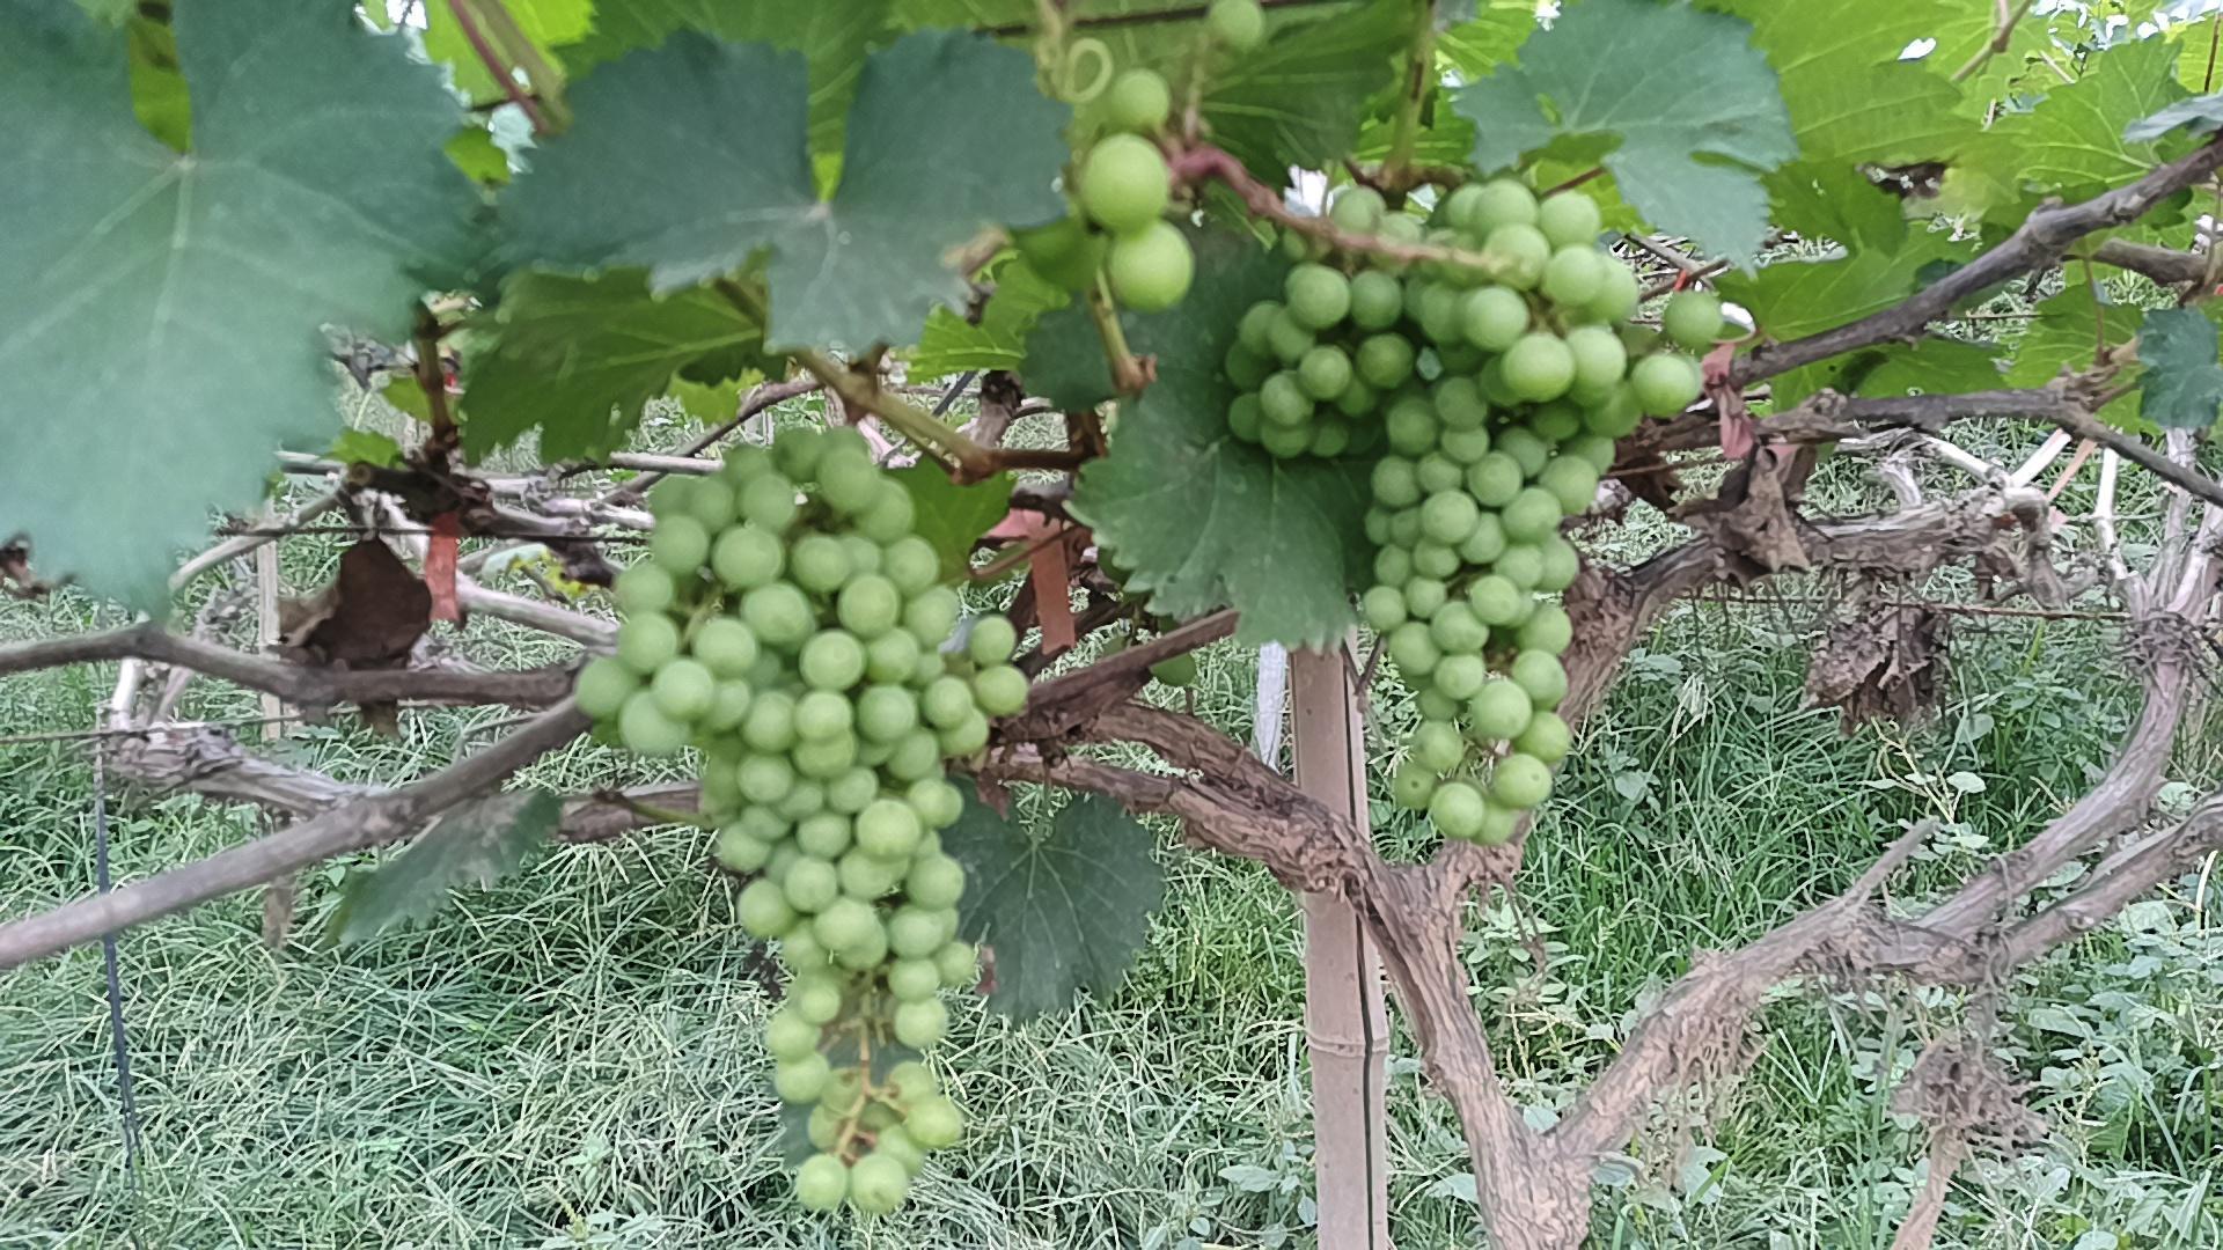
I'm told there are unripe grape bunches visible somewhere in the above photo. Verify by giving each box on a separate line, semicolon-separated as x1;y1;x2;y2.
1226;178;1700;841
580;427;1025;1214
1074;0;1267;311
